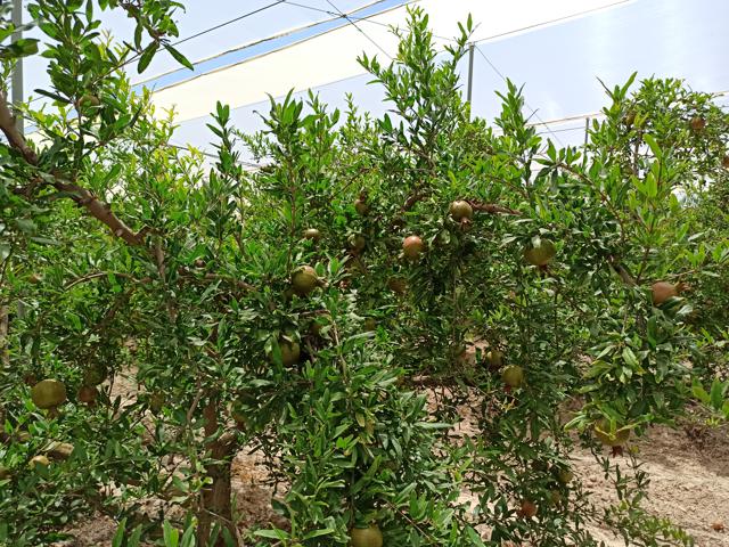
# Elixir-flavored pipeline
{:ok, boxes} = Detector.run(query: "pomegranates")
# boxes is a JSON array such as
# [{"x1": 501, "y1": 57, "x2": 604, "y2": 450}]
[
  {"x1": 351, "y1": 526, "x2": 383, "y2": 547},
  {"x1": 281, "y1": 343, "x2": 300, "y2": 364},
  {"x1": 75, "y1": 95, "x2": 100, "y2": 114},
  {"x1": 596, "y1": 428, "x2": 630, "y2": 458},
  {"x1": 486, "y1": 349, "x2": 506, "y2": 367},
  {"x1": 524, "y1": 238, "x2": 556, "y2": 271},
  {"x1": 301, "y1": 228, "x2": 321, "y2": 239},
  {"x1": 83, "y1": 364, "x2": 107, "y2": 385},
  {"x1": 557, "y1": 470, "x2": 573, "y2": 483},
  {"x1": 516, "y1": 499, "x2": 538, "y2": 520},
  {"x1": 652, "y1": 277, "x2": 690, "y2": 304},
  {"x1": 79, "y1": 385, "x2": 96, "y2": 406},
  {"x1": 31, "y1": 378, "x2": 66, "y2": 421},
  {"x1": 402, "y1": 235, "x2": 424, "y2": 256},
  {"x1": 450, "y1": 199, "x2": 474, "y2": 226},
  {"x1": 500, "y1": 365, "x2": 524, "y2": 394},
  {"x1": 390, "y1": 280, "x2": 406, "y2": 295},
  {"x1": 353, "y1": 194, "x2": 367, "y2": 211},
  {"x1": 292, "y1": 266, "x2": 328, "y2": 293},
  {"x1": 550, "y1": 488, "x2": 562, "y2": 509},
  {"x1": 346, "y1": 234, "x2": 366, "y2": 250}
]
